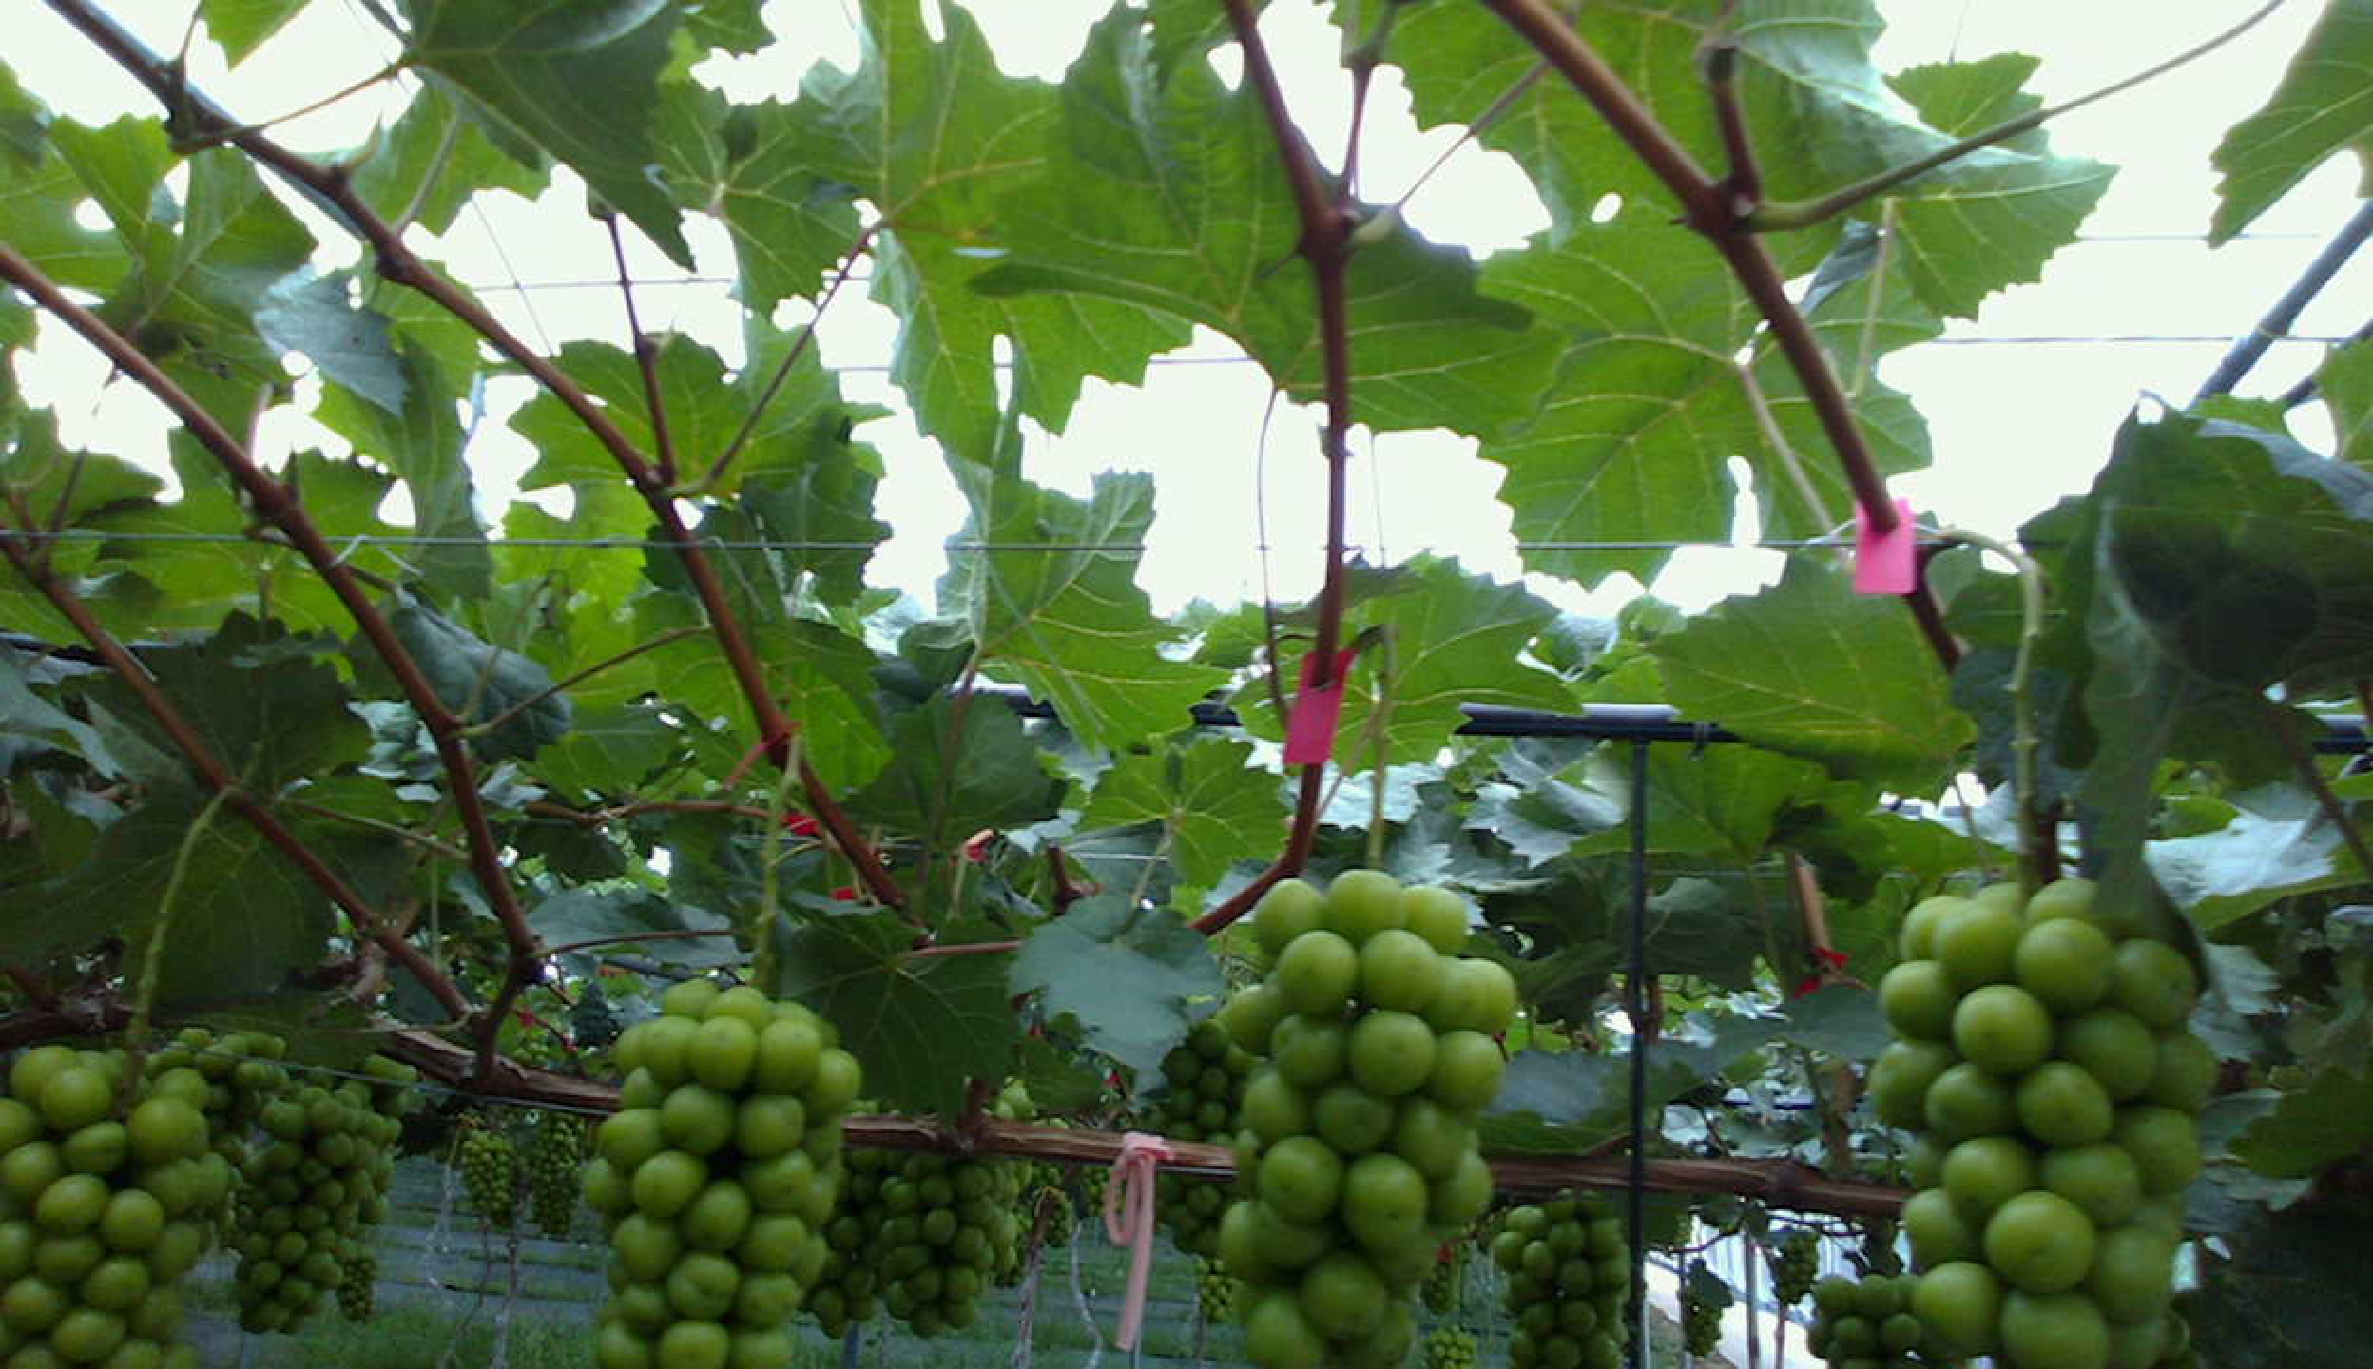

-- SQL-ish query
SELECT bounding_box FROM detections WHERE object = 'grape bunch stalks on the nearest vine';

[1936,529,2044,899]
[749,740,801,993]
[1350,620,1398,869]
[110,787,230,1122]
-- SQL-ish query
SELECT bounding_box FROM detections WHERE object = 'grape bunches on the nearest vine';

[1217,869,1519,1365]
[580,977,861,1367]
[1865,878,2221,1367]
[4,1046,228,1367]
